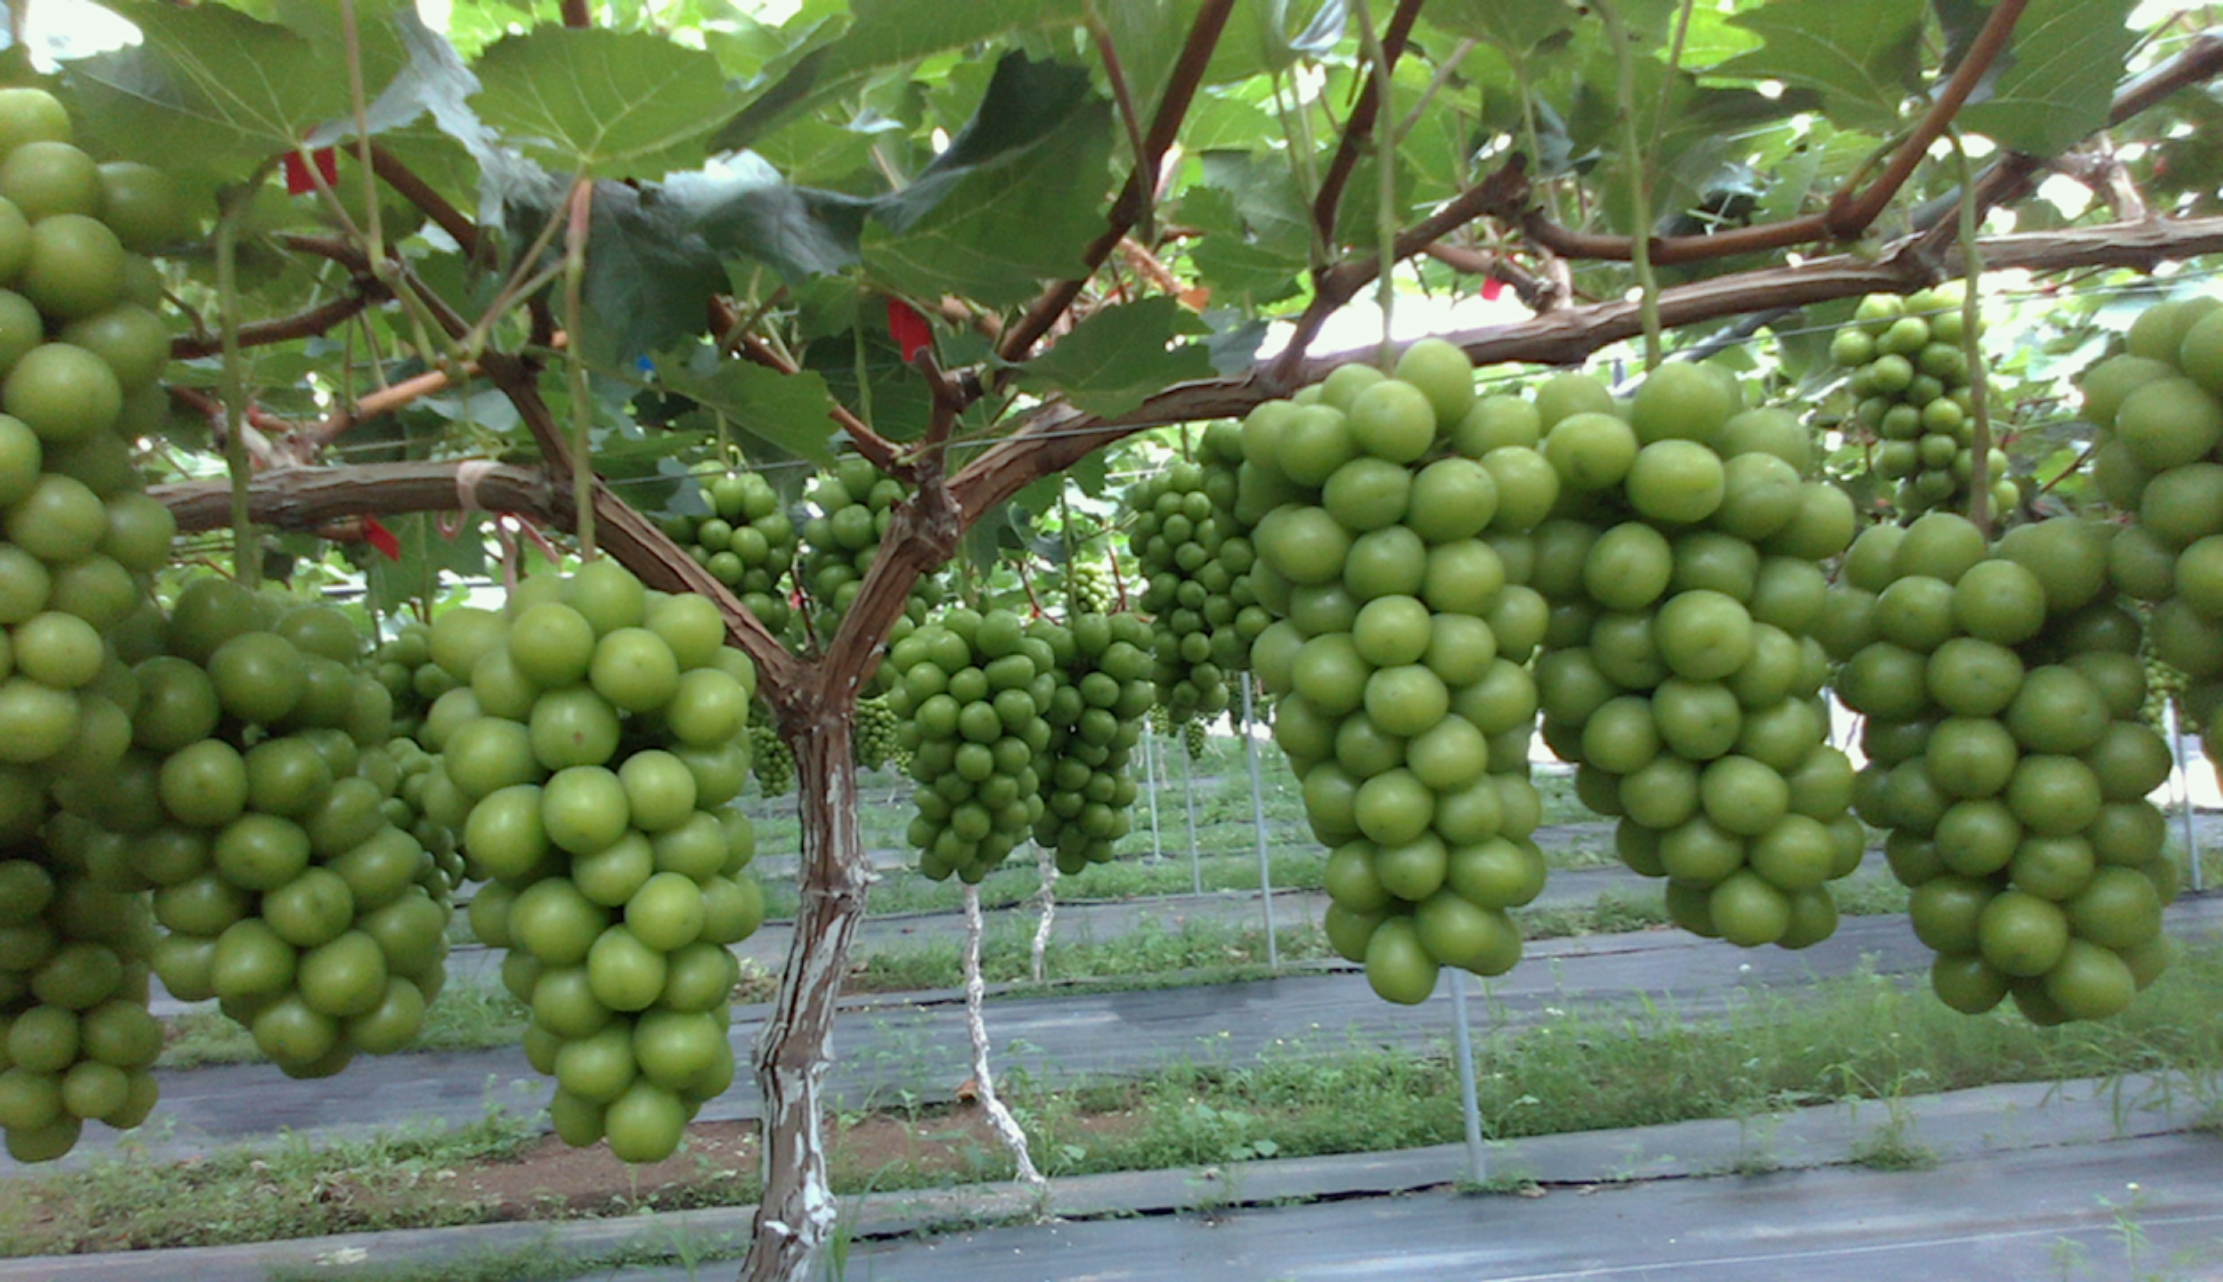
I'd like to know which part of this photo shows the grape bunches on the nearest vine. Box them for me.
[52,577,449,1077]
[1527,358,1863,947]
[2,771,166,1163]
[2082,294,2221,782]
[1815,513,2180,1017]
[2,89,180,766]
[1234,337,1562,1006]
[422,559,762,1163]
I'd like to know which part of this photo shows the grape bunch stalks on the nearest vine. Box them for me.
[1591,5,1660,377]
[214,151,283,584]
[1350,2,1395,376]
[1835,118,1993,534]
[563,180,597,561]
